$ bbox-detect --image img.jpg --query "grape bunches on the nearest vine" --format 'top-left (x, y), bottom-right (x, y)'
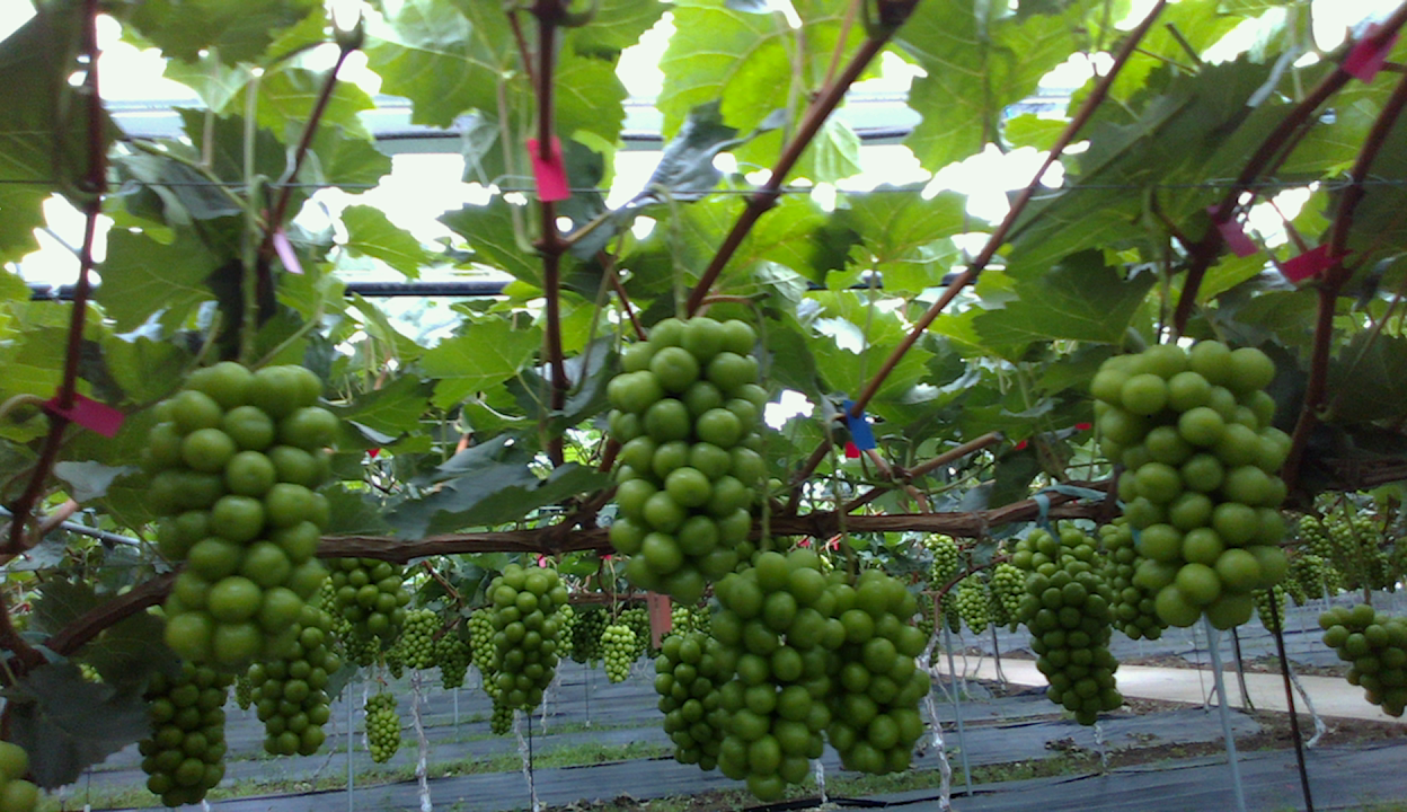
top-left (142, 360), bottom-right (339, 664)
top-left (607, 316), bottom-right (769, 606)
top-left (826, 570), bottom-right (930, 775)
top-left (1091, 339), bottom-right (1291, 630)
top-left (709, 548), bottom-right (842, 801)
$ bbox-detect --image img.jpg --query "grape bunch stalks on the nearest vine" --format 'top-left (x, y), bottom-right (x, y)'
top-left (238, 175), bottom-right (267, 369)
top-left (825, 412), bottom-right (855, 584)
top-left (641, 180), bottom-right (689, 318)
